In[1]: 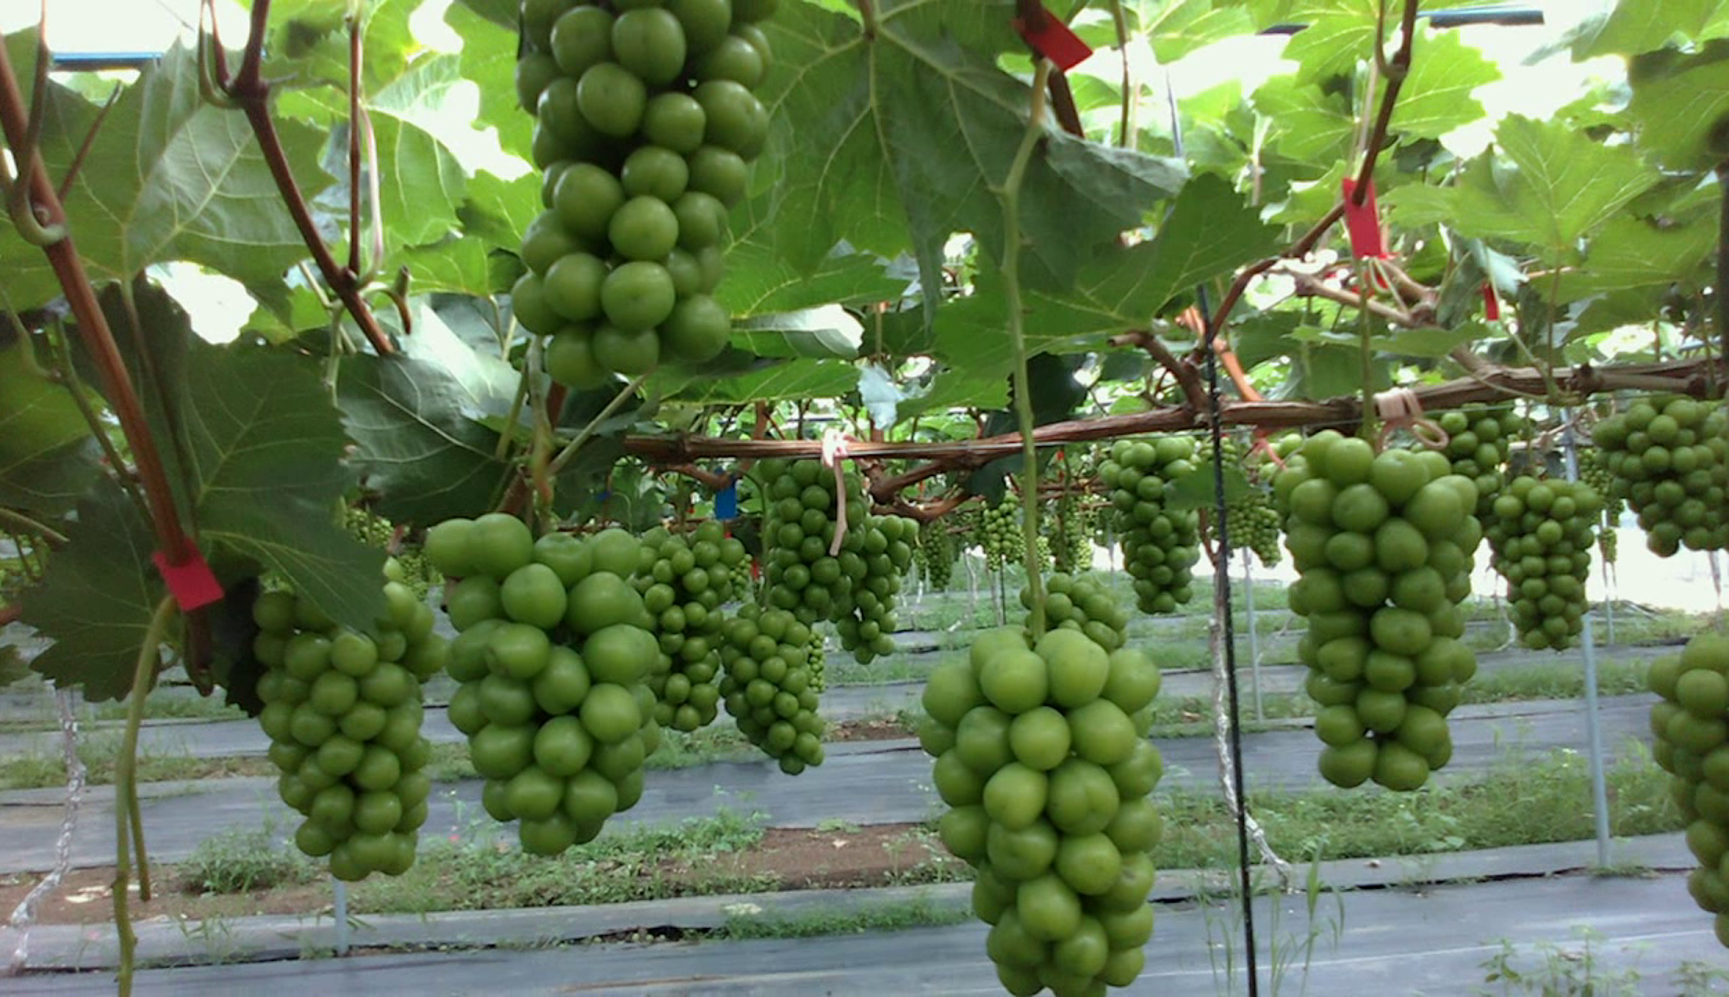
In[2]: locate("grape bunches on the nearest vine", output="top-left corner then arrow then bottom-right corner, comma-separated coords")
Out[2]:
252,557 -> 453,882
1644,633 -> 1728,950
510,1 -> 783,390
420,512 -> 661,854
1272,429 -> 1480,792
917,626 -> 1164,996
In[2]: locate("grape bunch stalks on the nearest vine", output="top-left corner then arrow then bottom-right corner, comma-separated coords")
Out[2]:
111,590 -> 175,996
323,299 -> 348,532
1352,260 -> 1377,449
1000,60 -> 1053,648
528,334 -> 556,536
